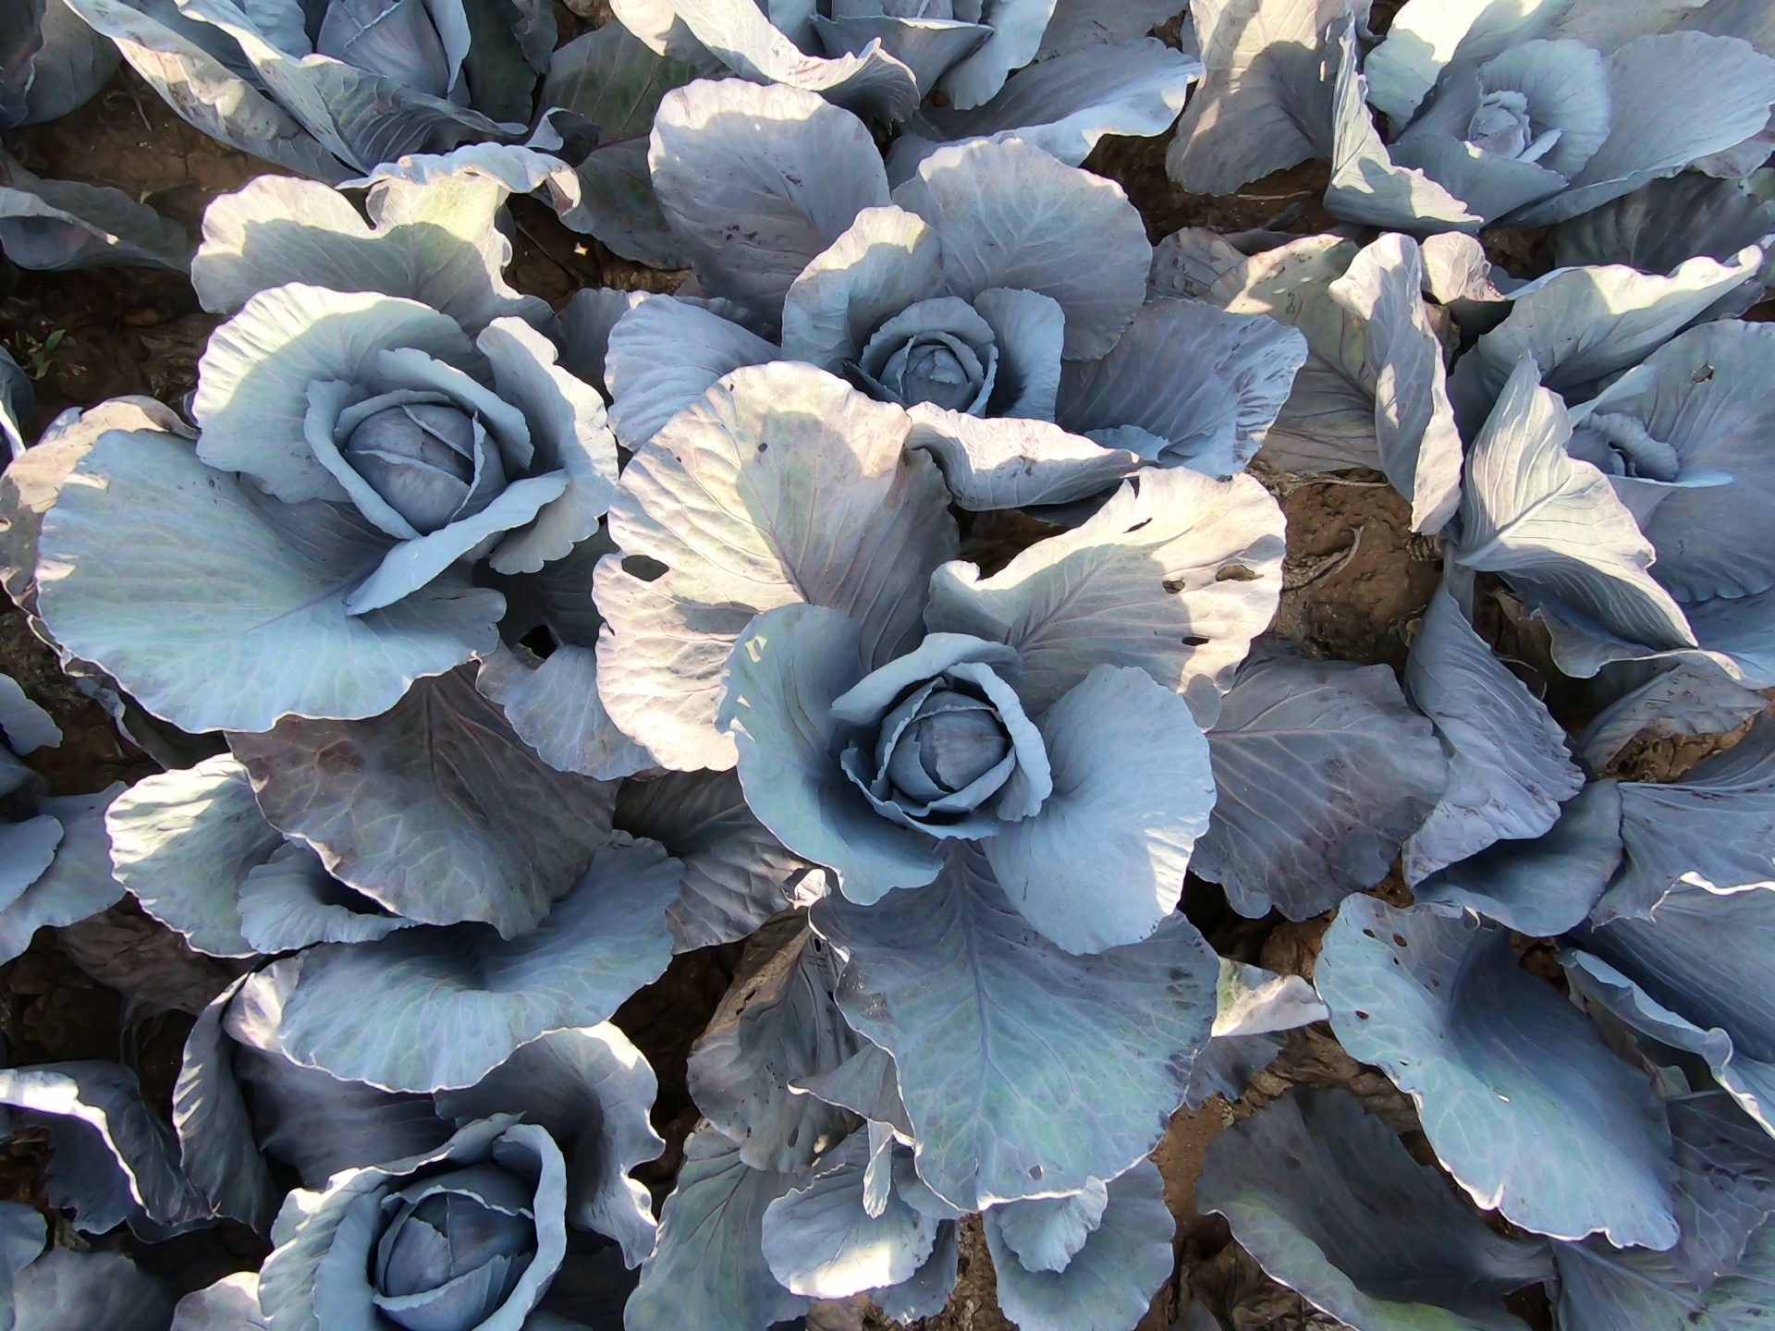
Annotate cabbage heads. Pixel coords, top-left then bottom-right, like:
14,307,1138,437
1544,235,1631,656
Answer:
373,1169,535,1328
889,689,1013,800
835,2,956,68
294,2,446,115
1440,100,1533,182
885,337,980,429
342,400,511,533
1537,430,1633,523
